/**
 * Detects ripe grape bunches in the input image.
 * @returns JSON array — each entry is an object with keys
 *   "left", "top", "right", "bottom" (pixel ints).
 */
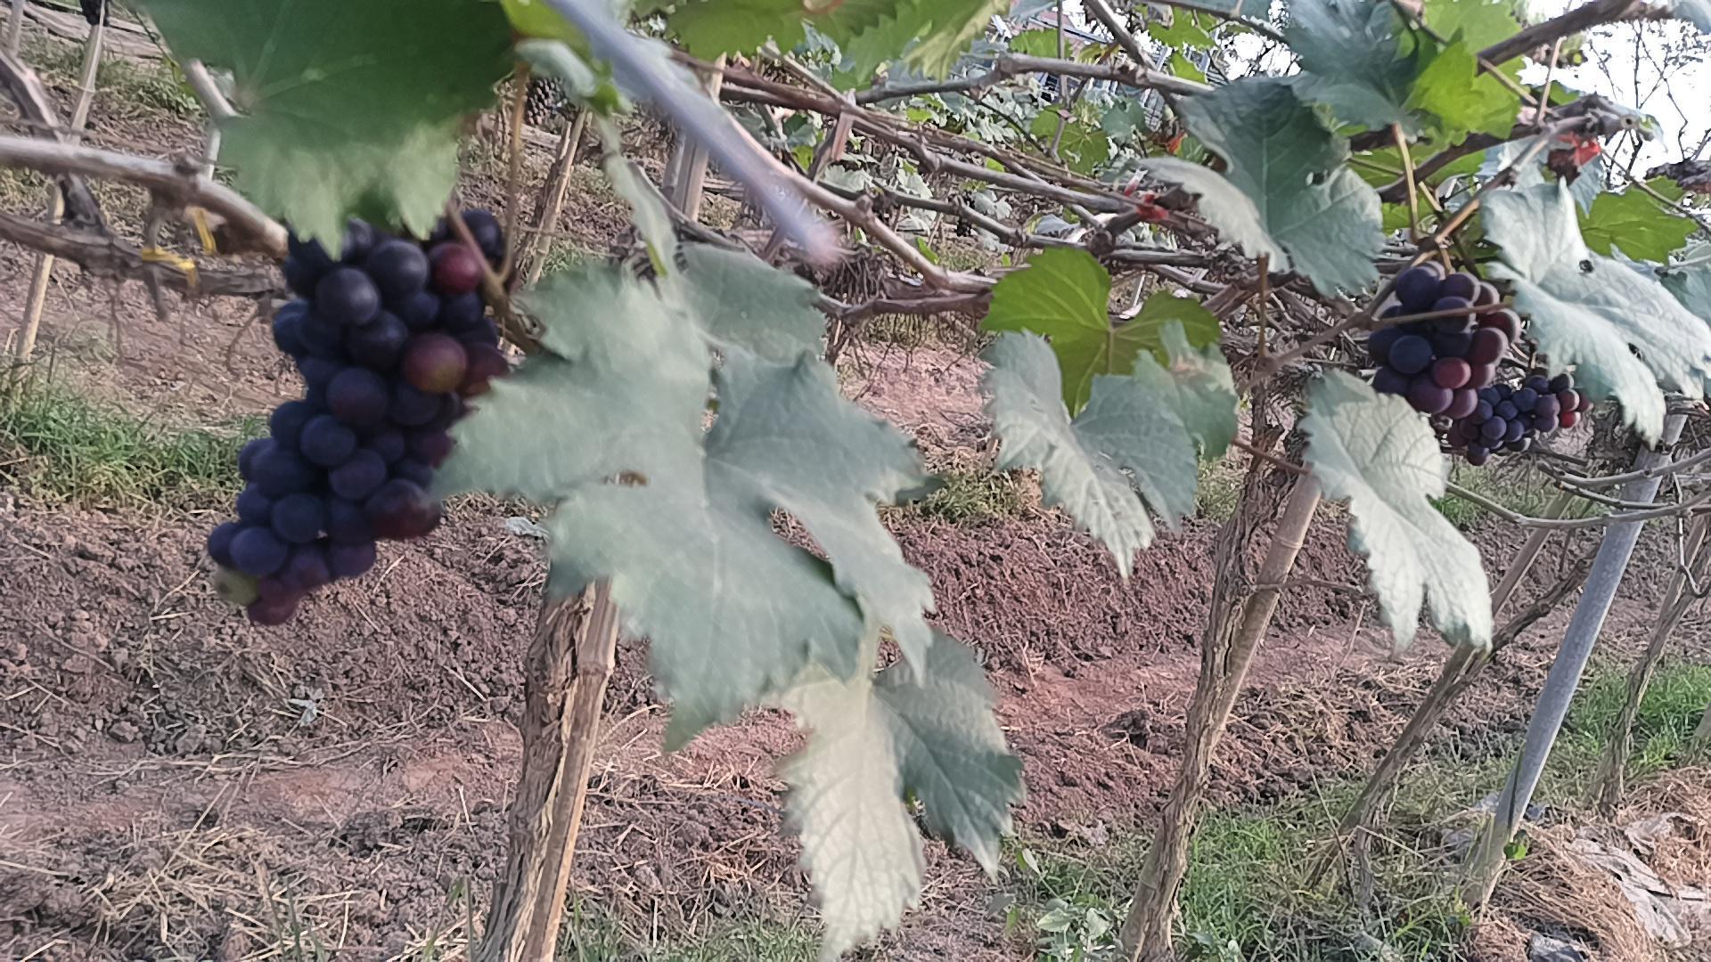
[
  {"left": 1368, "top": 264, "right": 1519, "bottom": 419},
  {"left": 1445, "top": 370, "right": 1589, "bottom": 465},
  {"left": 209, "top": 208, "right": 507, "bottom": 624}
]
